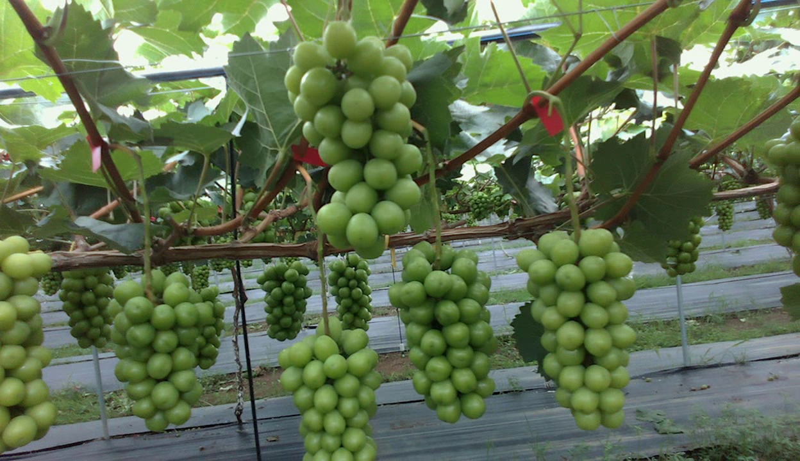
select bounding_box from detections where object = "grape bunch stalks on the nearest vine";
[105,143,152,298]
[411,120,441,271]
[522,90,580,242]
[296,165,329,336]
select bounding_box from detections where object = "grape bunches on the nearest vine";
[2,236,54,450]
[387,240,497,422]
[109,269,213,432]
[277,317,383,459]
[515,228,636,431]
[285,19,422,258]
